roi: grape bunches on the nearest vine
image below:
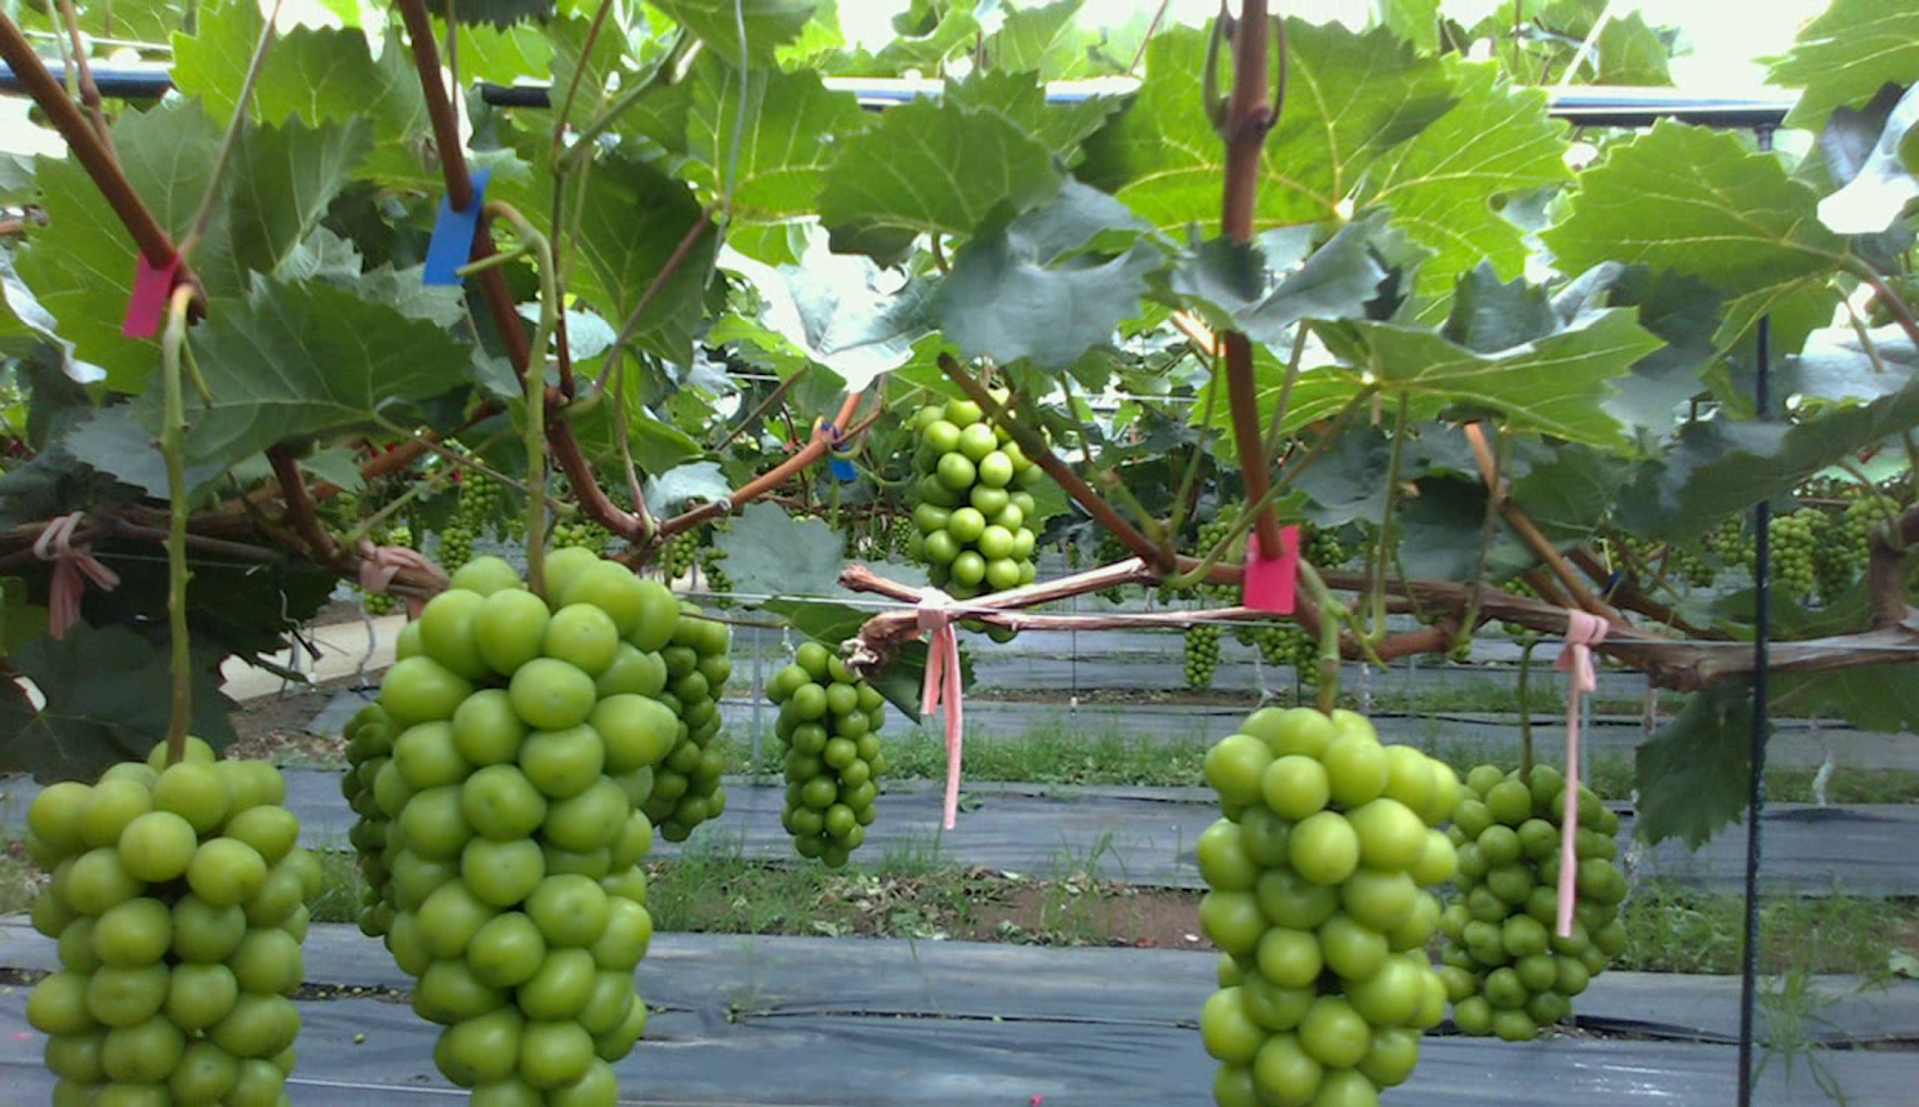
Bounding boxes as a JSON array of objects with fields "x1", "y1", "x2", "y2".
[
  {"x1": 1196, "y1": 706, "x2": 1461, "y2": 1105},
  {"x1": 374, "y1": 546, "x2": 681, "y2": 1105},
  {"x1": 25, "y1": 736, "x2": 321, "y2": 1105}
]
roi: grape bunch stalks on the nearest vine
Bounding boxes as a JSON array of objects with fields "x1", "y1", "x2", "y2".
[
  {"x1": 158, "y1": 280, "x2": 206, "y2": 769},
  {"x1": 1296, "y1": 558, "x2": 1339, "y2": 718},
  {"x1": 481, "y1": 195, "x2": 555, "y2": 604}
]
